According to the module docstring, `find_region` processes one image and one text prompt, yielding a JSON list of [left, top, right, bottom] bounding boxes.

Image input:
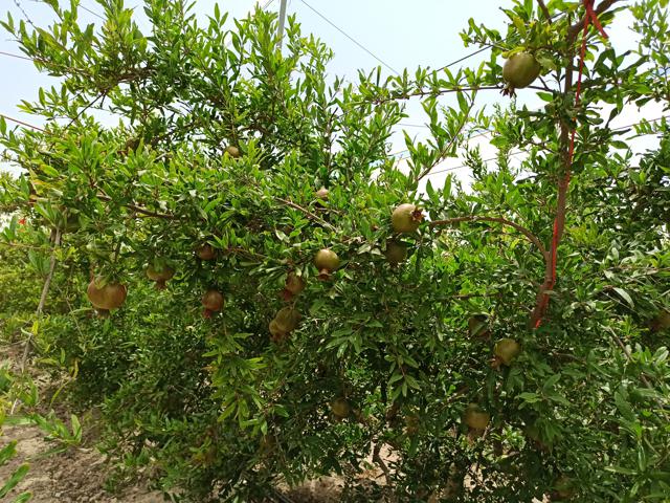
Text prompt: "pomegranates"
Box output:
[[315, 189, 329, 201], [498, 52, 541, 99], [464, 401, 490, 439], [268, 318, 287, 342], [275, 309, 299, 332], [147, 266, 175, 291], [222, 145, 240, 158], [485, 337, 520, 371], [383, 242, 405, 268], [332, 399, 352, 422], [278, 275, 305, 302], [392, 202, 427, 233], [202, 290, 225, 320], [648, 312, 670, 331], [314, 248, 339, 282], [196, 244, 218, 260], [87, 280, 127, 321]]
